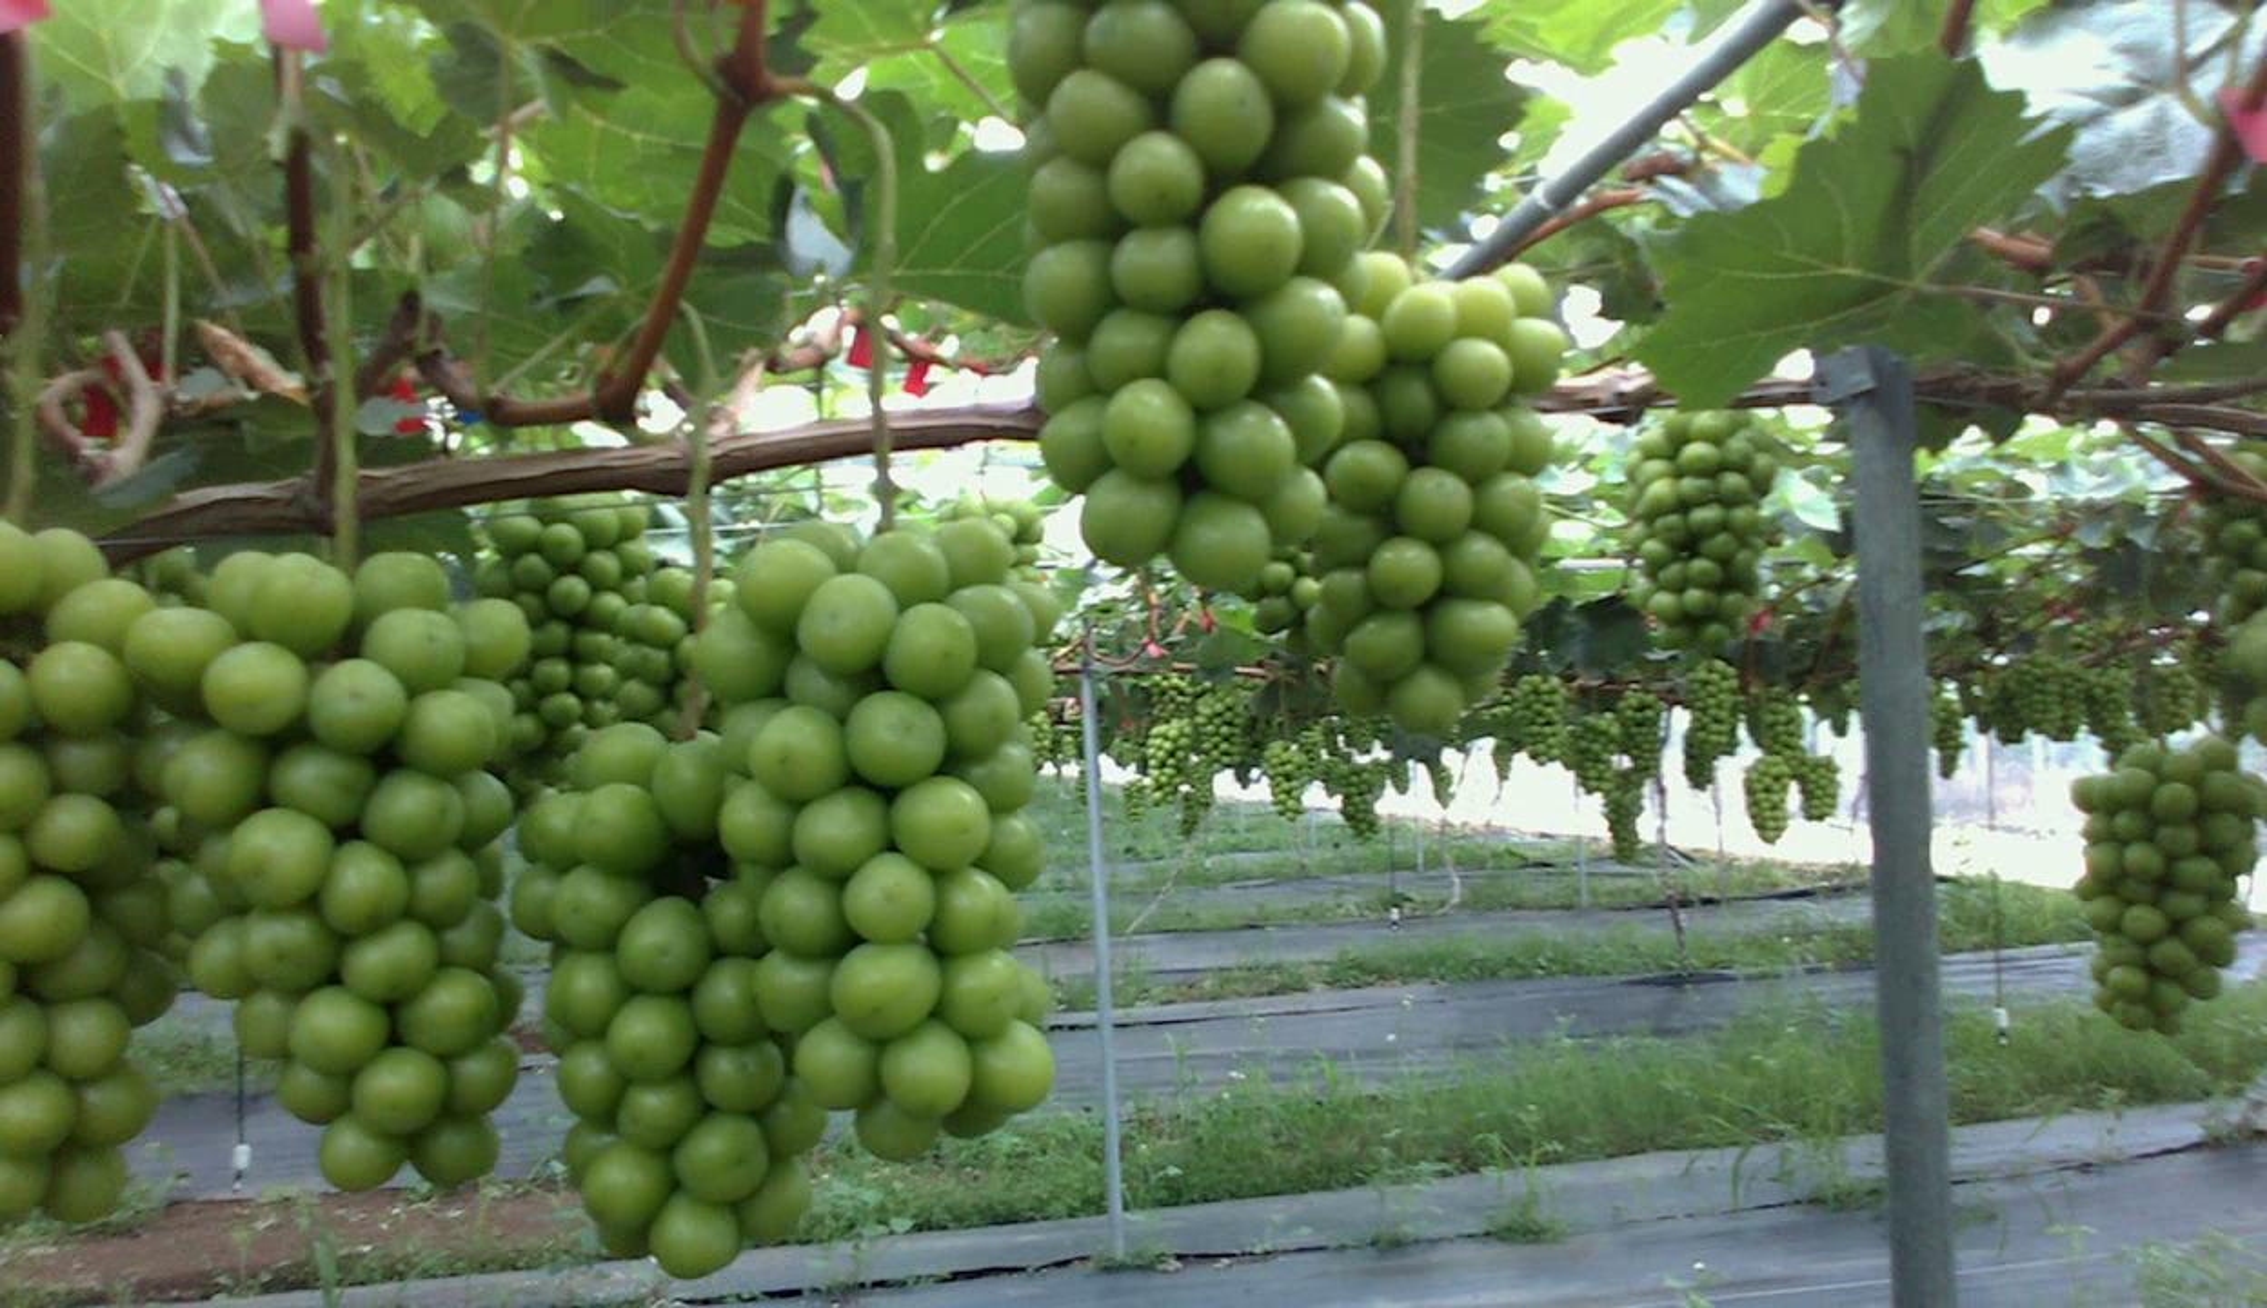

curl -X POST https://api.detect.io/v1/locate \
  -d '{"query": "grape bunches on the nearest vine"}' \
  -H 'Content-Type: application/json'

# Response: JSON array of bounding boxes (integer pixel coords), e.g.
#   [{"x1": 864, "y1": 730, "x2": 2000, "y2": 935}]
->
[
  {"x1": 122, "y1": 550, "x2": 532, "y2": 1194},
  {"x1": 1006, "y1": 0, "x2": 1391, "y2": 589},
  {"x1": 0, "y1": 518, "x2": 205, "y2": 1224},
  {"x1": 1306, "y1": 251, "x2": 1566, "y2": 736},
  {"x1": 692, "y1": 518, "x2": 1064, "y2": 1163},
  {"x1": 505, "y1": 721, "x2": 825, "y2": 1281}
]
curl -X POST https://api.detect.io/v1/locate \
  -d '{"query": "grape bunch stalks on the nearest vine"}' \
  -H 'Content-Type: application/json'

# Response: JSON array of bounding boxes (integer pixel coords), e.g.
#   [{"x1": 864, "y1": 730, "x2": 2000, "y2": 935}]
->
[
  {"x1": 750, "y1": 67, "x2": 899, "y2": 532},
  {"x1": 265, "y1": 47, "x2": 354, "y2": 576},
  {"x1": 672, "y1": 298, "x2": 716, "y2": 736},
  {"x1": 1397, "y1": 4, "x2": 1426, "y2": 274},
  {"x1": 9, "y1": 36, "x2": 44, "y2": 520}
]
